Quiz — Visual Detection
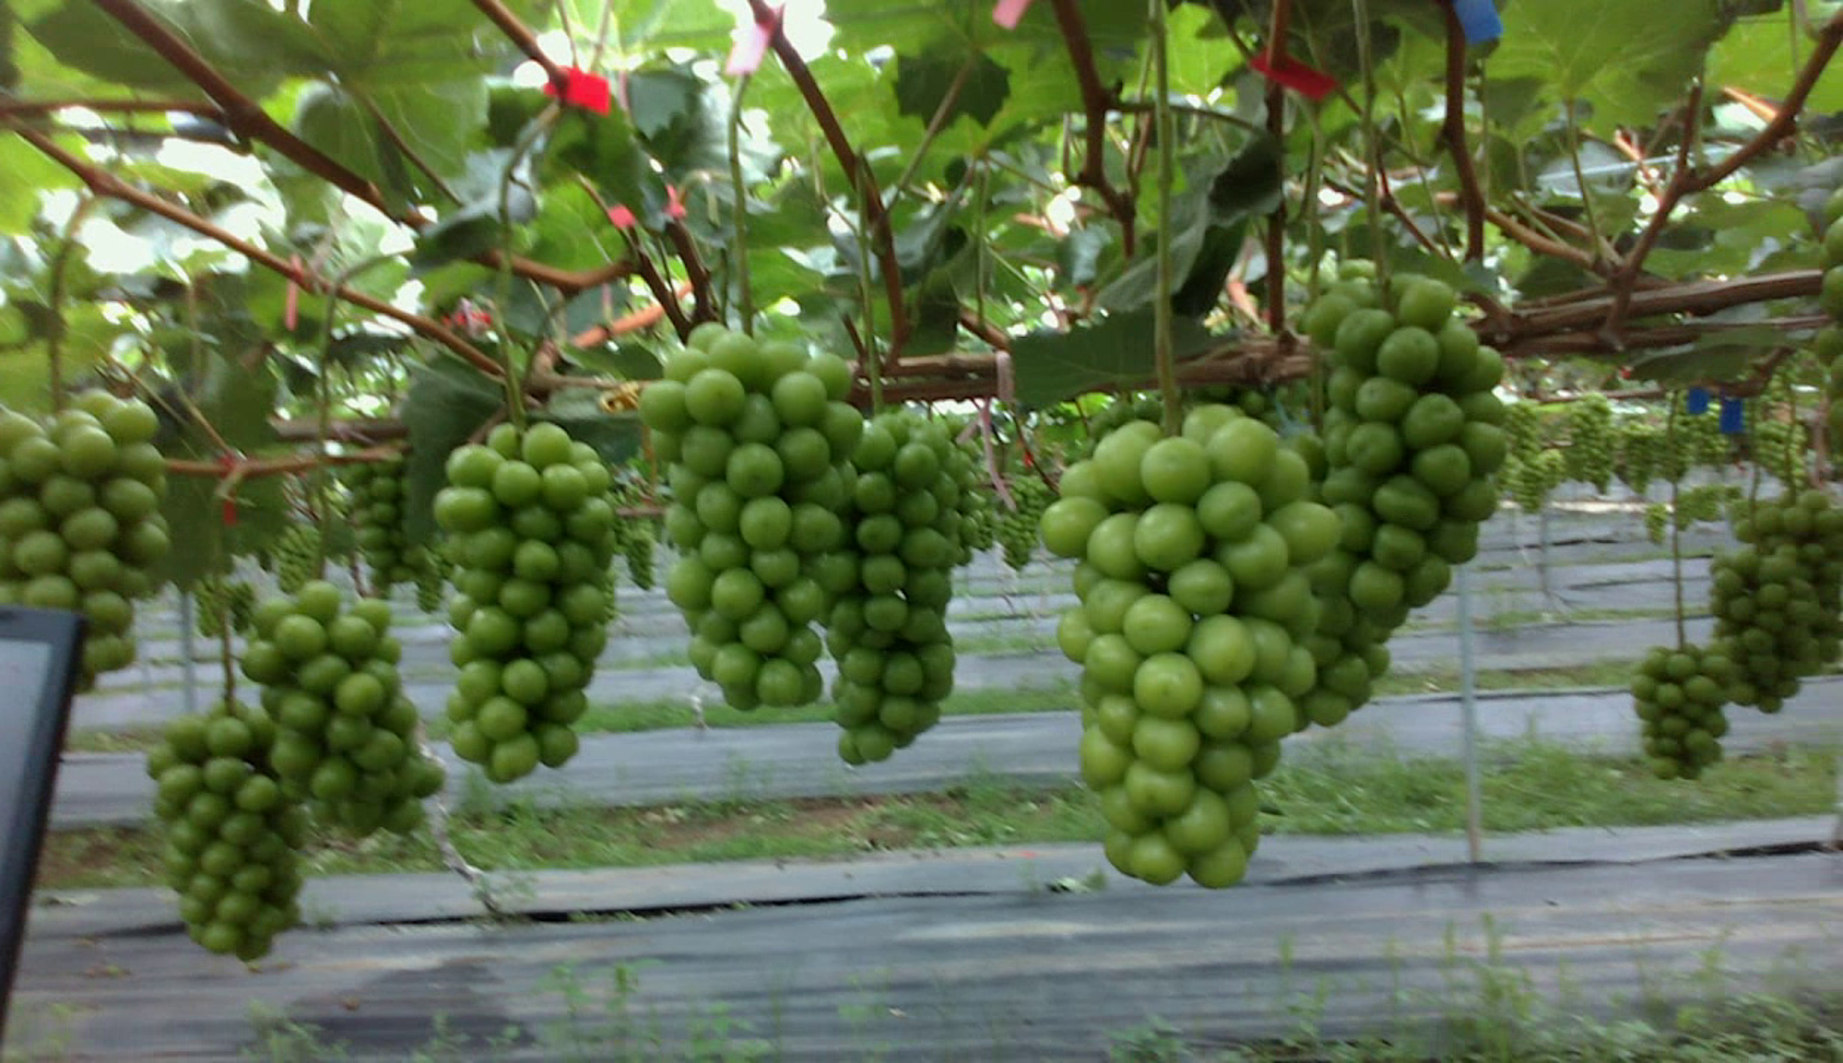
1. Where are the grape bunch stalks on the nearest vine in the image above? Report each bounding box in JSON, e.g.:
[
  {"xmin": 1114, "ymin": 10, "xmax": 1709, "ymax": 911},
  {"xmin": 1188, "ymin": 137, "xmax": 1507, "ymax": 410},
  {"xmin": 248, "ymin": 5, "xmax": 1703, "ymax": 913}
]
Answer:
[
  {"xmin": 46, "ymin": 196, "xmax": 95, "ymax": 409},
  {"xmin": 857, "ymin": 164, "xmax": 885, "ymax": 413},
  {"xmin": 1356, "ymin": 1, "xmax": 1393, "ymax": 301},
  {"xmin": 473, "ymin": 295, "xmax": 526, "ymax": 428},
  {"xmin": 1291, "ymin": 93, "xmax": 1325, "ymax": 430},
  {"xmin": 208, "ymin": 478, "xmax": 235, "ymax": 715},
  {"xmin": 728, "ymin": 77, "xmax": 759, "ymax": 335},
  {"xmin": 312, "ymin": 251, "xmax": 405, "ymax": 577},
  {"xmin": 1147, "ymin": 0, "xmax": 1180, "ymax": 434}
]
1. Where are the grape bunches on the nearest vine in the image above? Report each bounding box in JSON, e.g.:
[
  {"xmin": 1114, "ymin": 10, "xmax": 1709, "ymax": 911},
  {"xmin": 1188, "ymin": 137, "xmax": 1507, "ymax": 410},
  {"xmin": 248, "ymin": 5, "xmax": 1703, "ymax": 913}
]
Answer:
[
  {"xmin": 1295, "ymin": 585, "xmax": 1391, "ymax": 732},
  {"xmin": 145, "ymin": 703, "xmax": 306, "ymax": 963},
  {"xmin": 1044, "ymin": 405, "xmax": 1344, "ymax": 890},
  {"xmin": 0, "ymin": 388, "xmax": 170, "ymax": 694},
  {"xmin": 809, "ymin": 413, "xmax": 966, "ymax": 766},
  {"xmin": 1308, "ymin": 258, "xmax": 1508, "ymax": 627},
  {"xmin": 433, "ymin": 424, "xmax": 617, "ymax": 787},
  {"xmin": 239, "ymin": 583, "xmax": 443, "ymax": 837},
  {"xmin": 641, "ymin": 322, "xmax": 864, "ymax": 715}
]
